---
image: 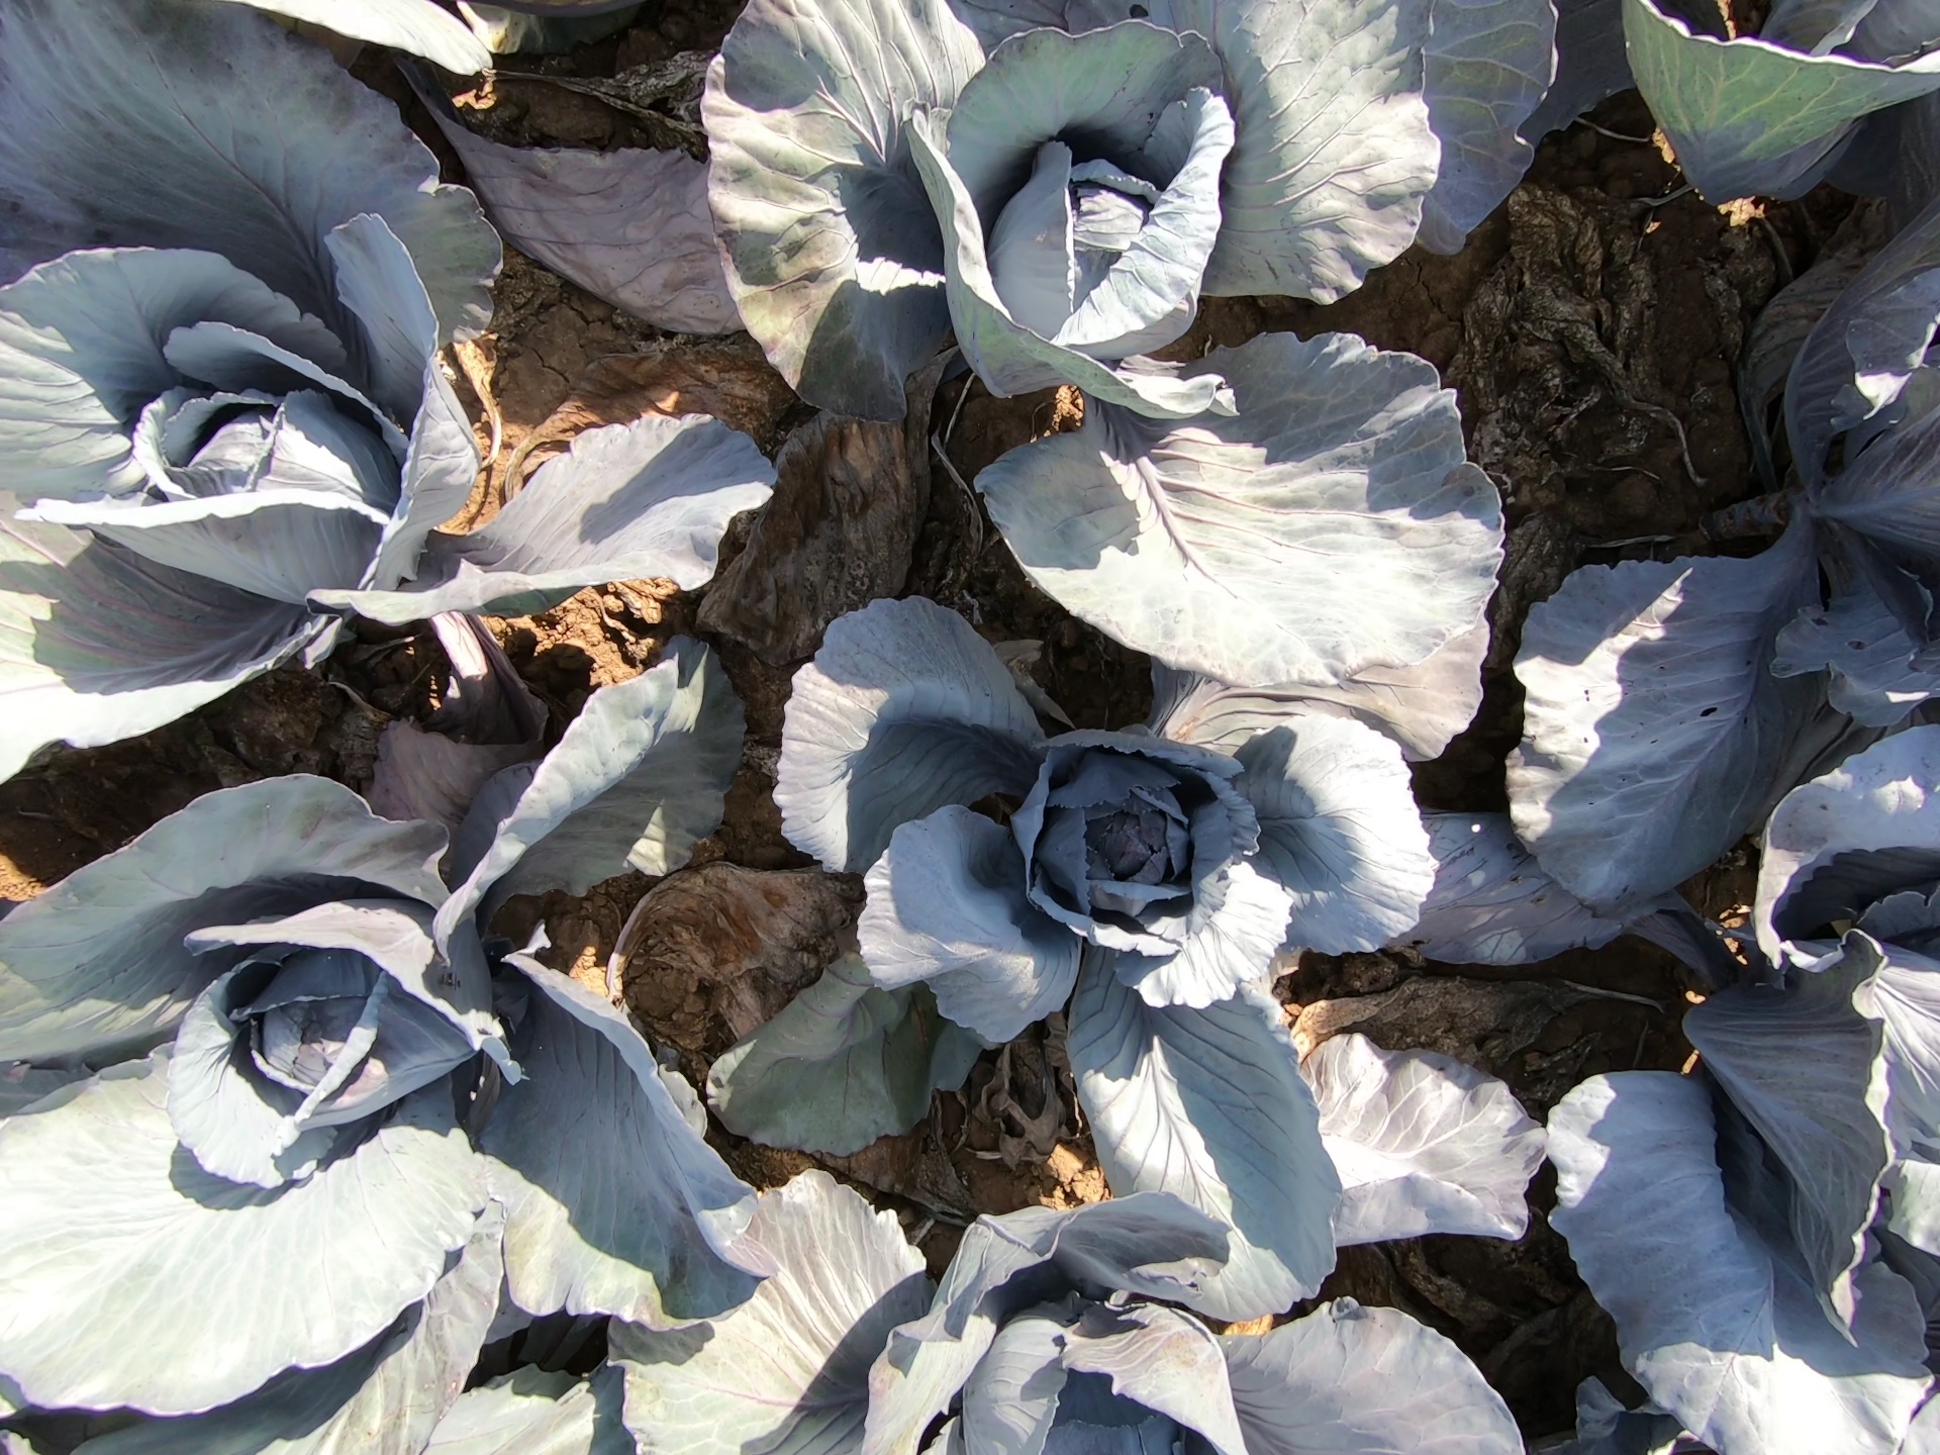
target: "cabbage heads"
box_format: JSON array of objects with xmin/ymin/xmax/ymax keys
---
[
  {"xmin": 178, "ymin": 400, "xmax": 377, "ymax": 565},
  {"xmin": 990, "ymin": 1334, "xmax": 1182, "ymax": 1448},
  {"xmin": 257, "ymin": 942, "xmax": 469, "ymax": 1103},
  {"xmin": 1045, "ymin": 774, "xmax": 1190, "ymax": 908},
  {"xmin": 1023, "ymin": 164, "xmax": 1174, "ymax": 335}
]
